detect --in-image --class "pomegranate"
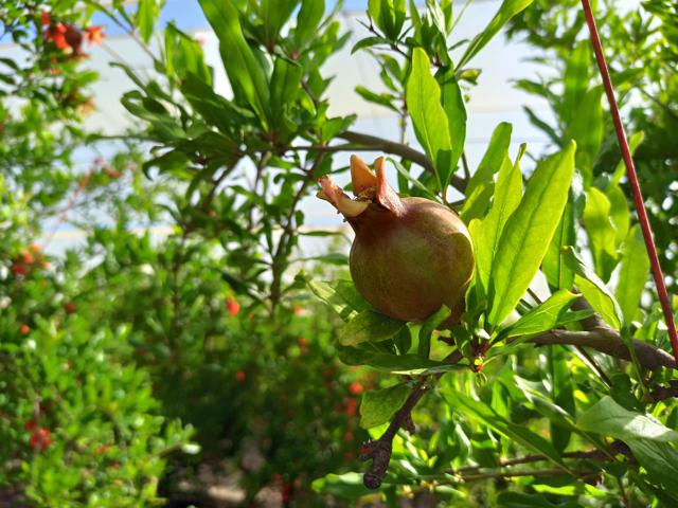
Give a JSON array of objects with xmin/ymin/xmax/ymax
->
[{"xmin": 314, "ymin": 153, "xmax": 476, "ymax": 326}]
